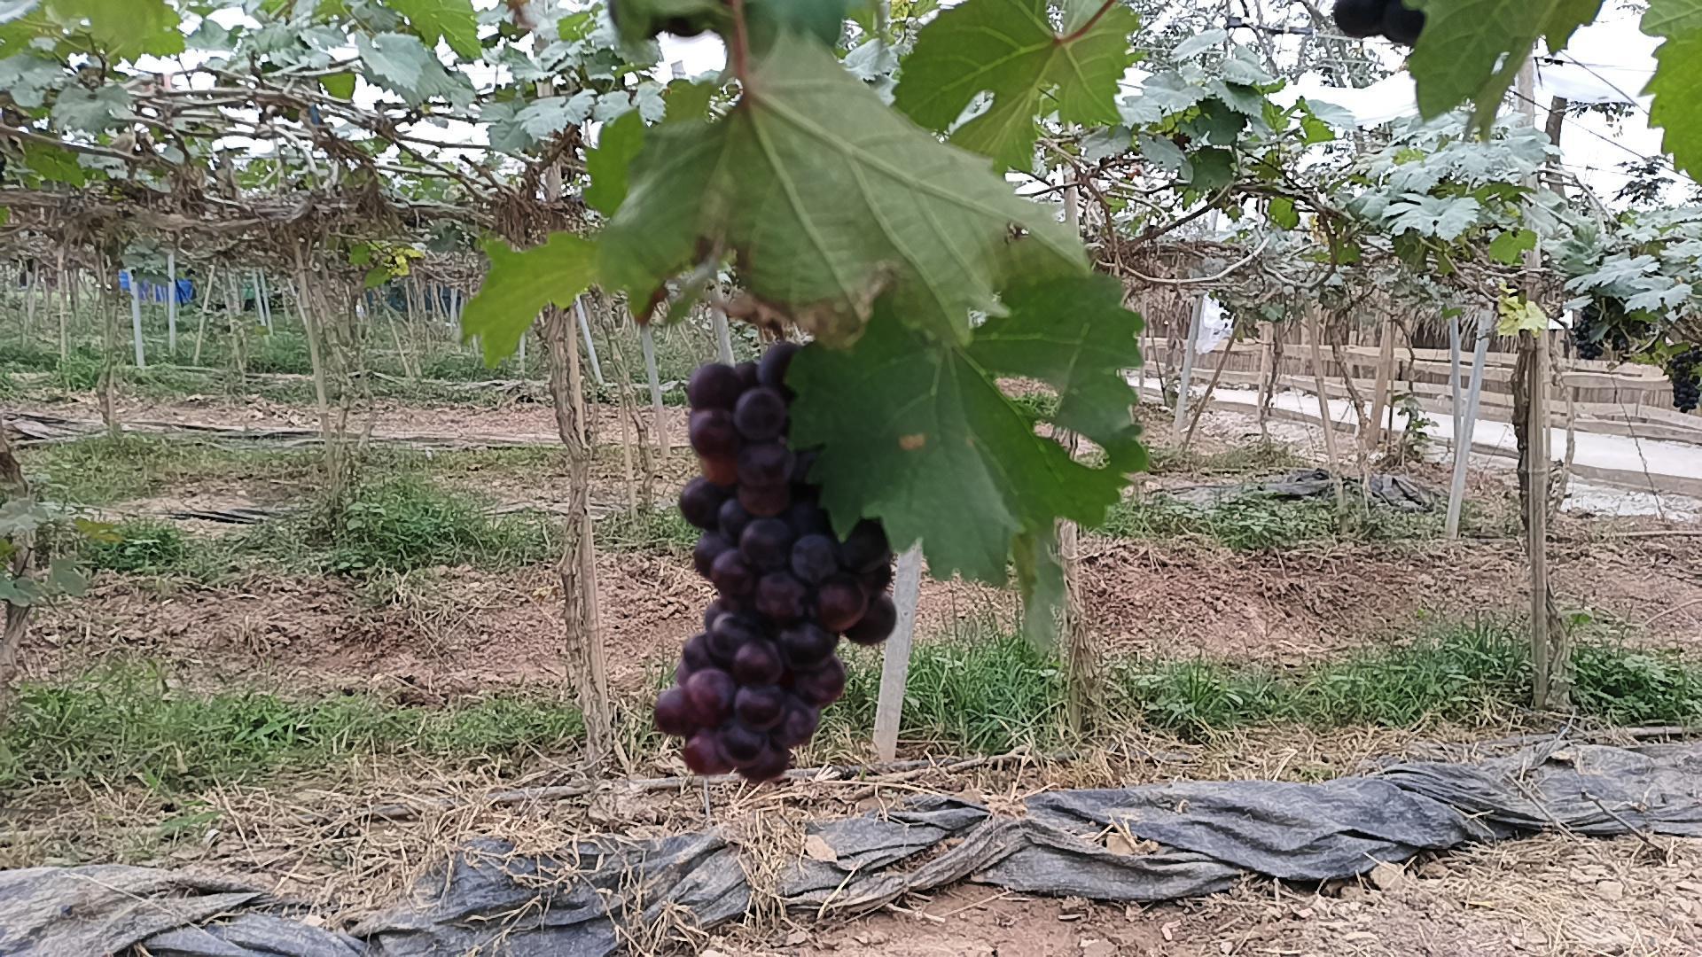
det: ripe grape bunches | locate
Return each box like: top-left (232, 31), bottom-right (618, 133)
top-left (654, 344), bottom-right (896, 781)
top-left (1567, 297), bottom-right (1618, 360)
top-left (1663, 344), bottom-right (1701, 413)
top-left (1331, 0), bottom-right (1425, 49)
